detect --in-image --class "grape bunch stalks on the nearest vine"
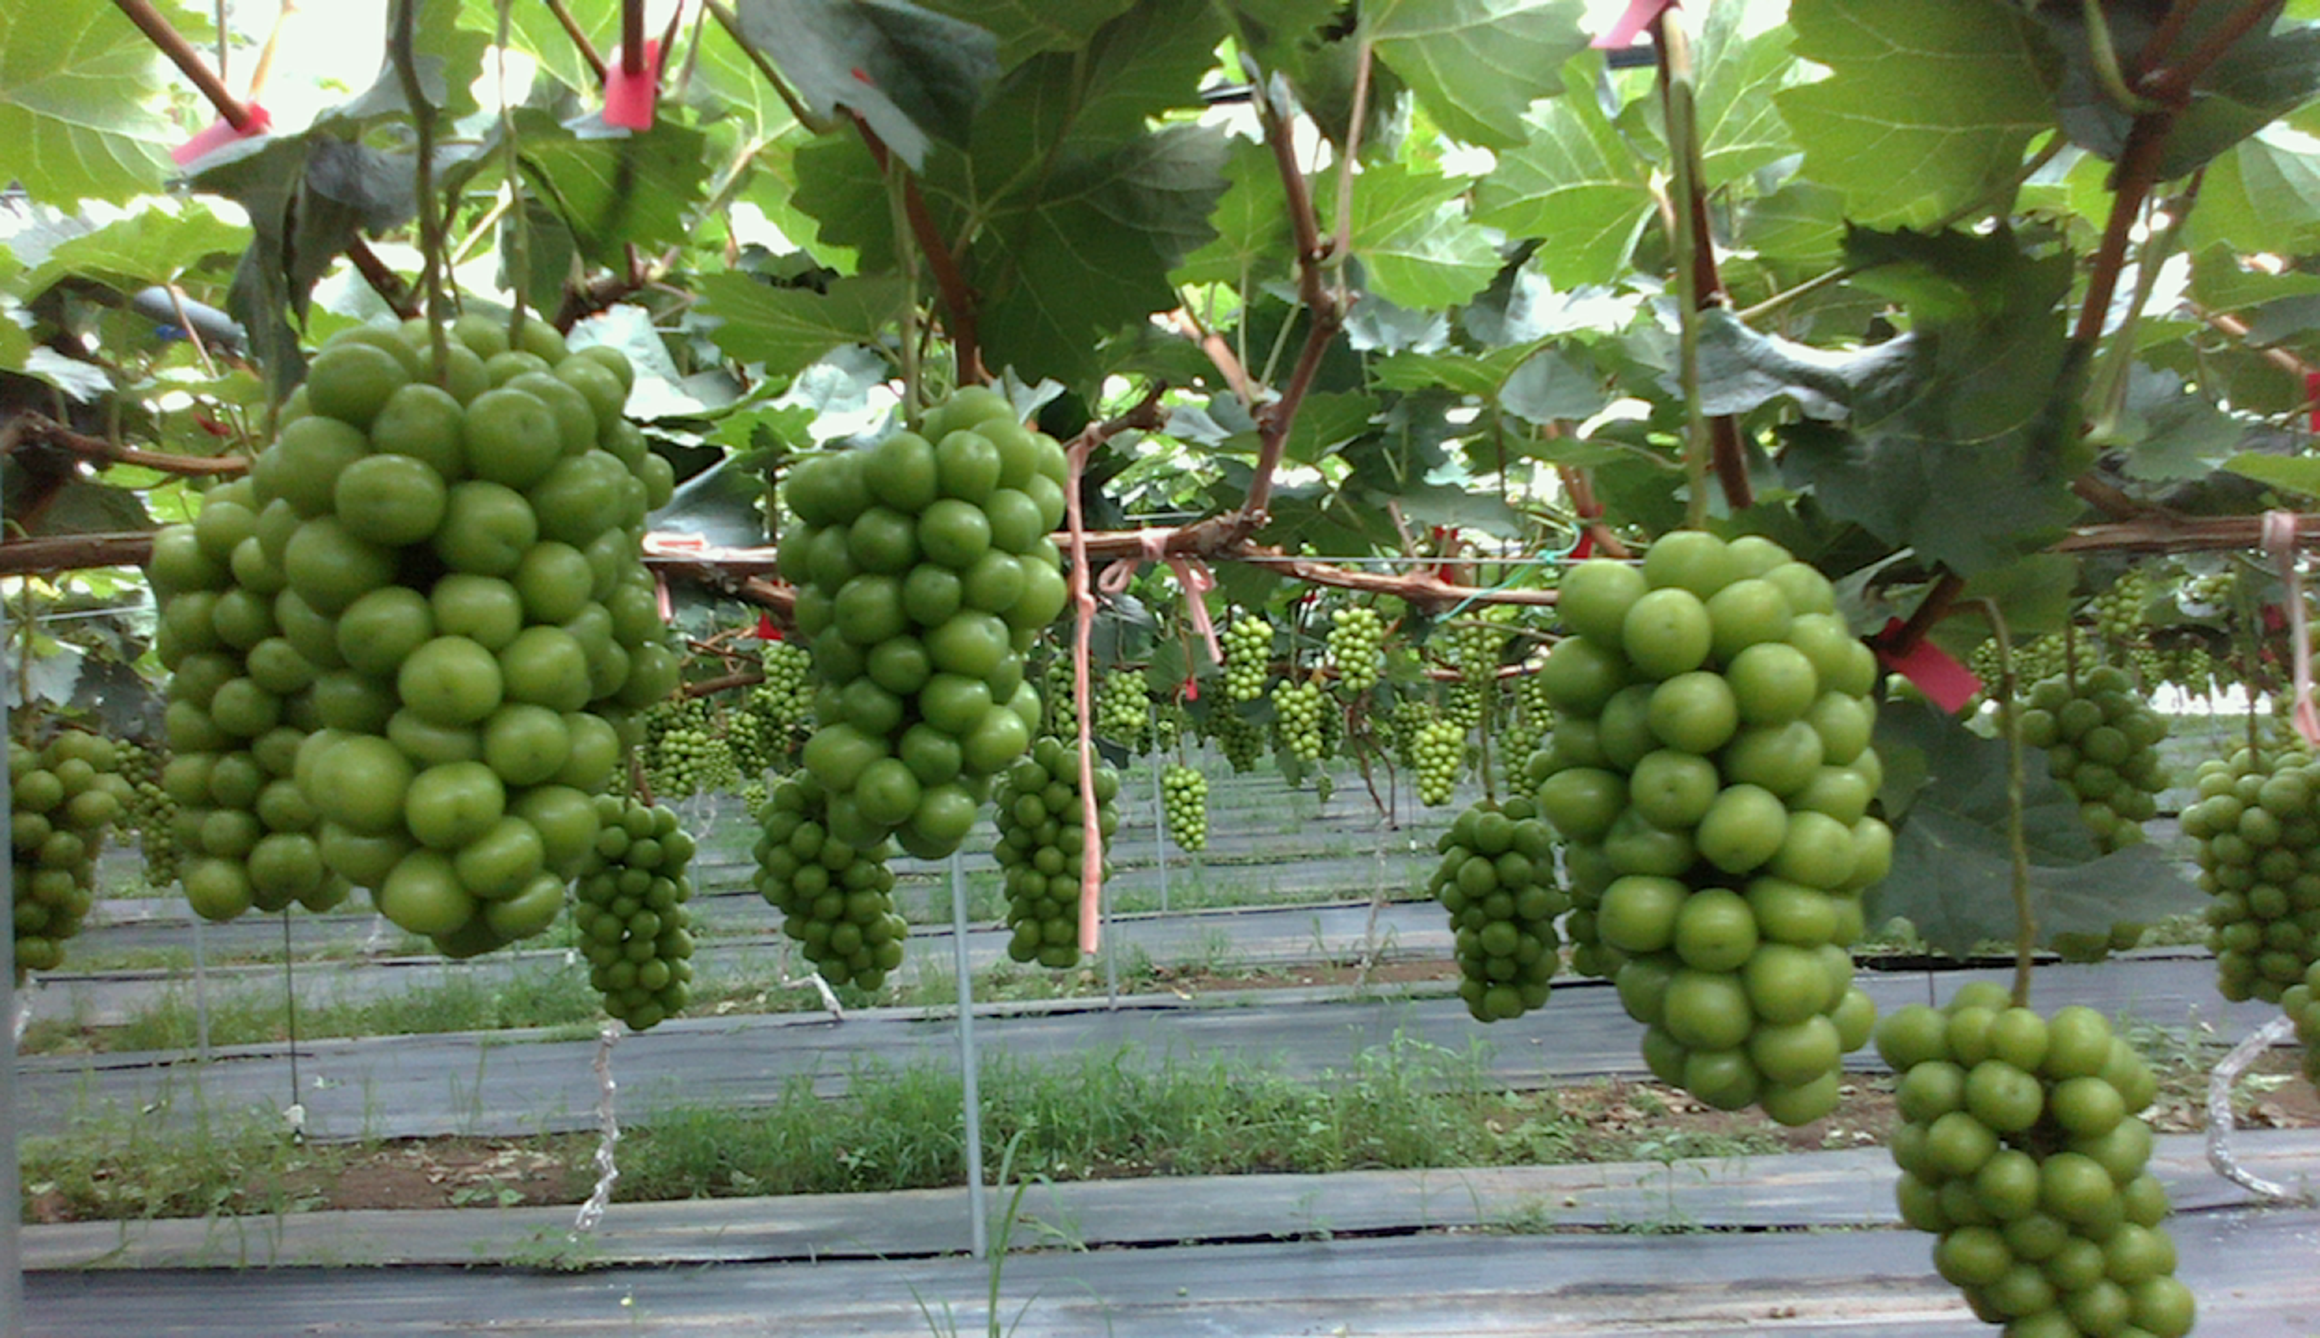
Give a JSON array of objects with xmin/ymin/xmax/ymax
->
[
  {"xmin": 1662, "ymin": 4, "xmax": 1707, "ymax": 530},
  {"xmin": 392, "ymin": 0, "xmax": 446, "ymax": 388},
  {"xmin": 1931, "ymin": 598, "xmax": 2036, "ymax": 1009},
  {"xmin": 889, "ymin": 152, "xmax": 922, "ymax": 431},
  {"xmin": 498, "ymin": 98, "xmax": 528, "ymax": 349}
]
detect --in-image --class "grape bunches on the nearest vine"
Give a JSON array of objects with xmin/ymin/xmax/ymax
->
[
  {"xmin": 442, "ymin": 318, "xmax": 679, "ymax": 754},
  {"xmin": 147, "ymin": 478, "xmax": 351, "ymax": 920},
  {"xmin": 249, "ymin": 318, "xmax": 625, "ymax": 961},
  {"xmin": 773, "ymin": 383, "xmax": 1071, "ymax": 862},
  {"xmin": 1874, "ymin": 981, "xmax": 2194, "ymax": 1336},
  {"xmin": 1537, "ymin": 530, "xmax": 1894, "ymax": 1128}
]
